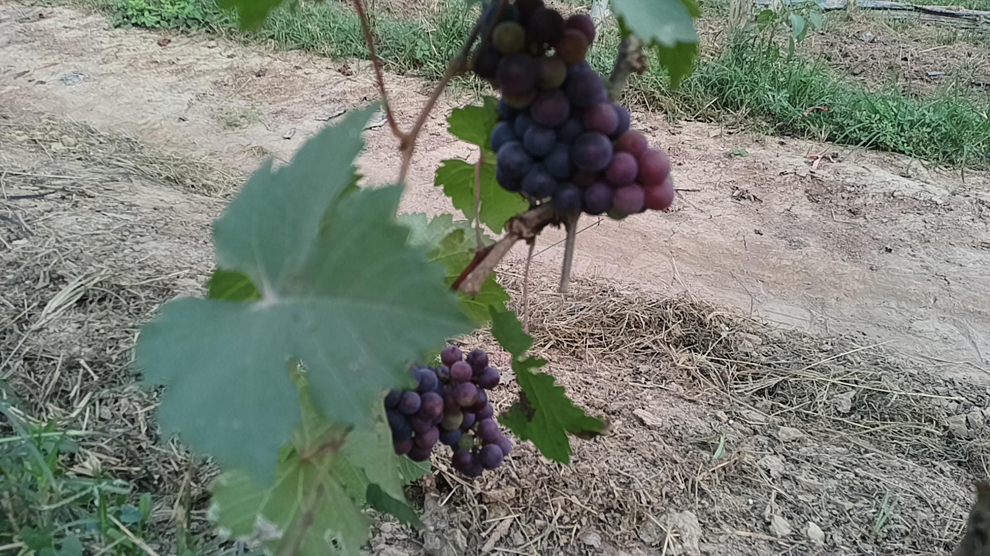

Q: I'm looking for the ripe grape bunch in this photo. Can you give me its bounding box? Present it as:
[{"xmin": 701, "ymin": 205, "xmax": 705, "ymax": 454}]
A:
[{"xmin": 472, "ymin": 0, "xmax": 674, "ymax": 219}]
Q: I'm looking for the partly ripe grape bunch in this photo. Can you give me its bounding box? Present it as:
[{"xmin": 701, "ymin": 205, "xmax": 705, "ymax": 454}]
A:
[{"xmin": 385, "ymin": 345, "xmax": 512, "ymax": 477}]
